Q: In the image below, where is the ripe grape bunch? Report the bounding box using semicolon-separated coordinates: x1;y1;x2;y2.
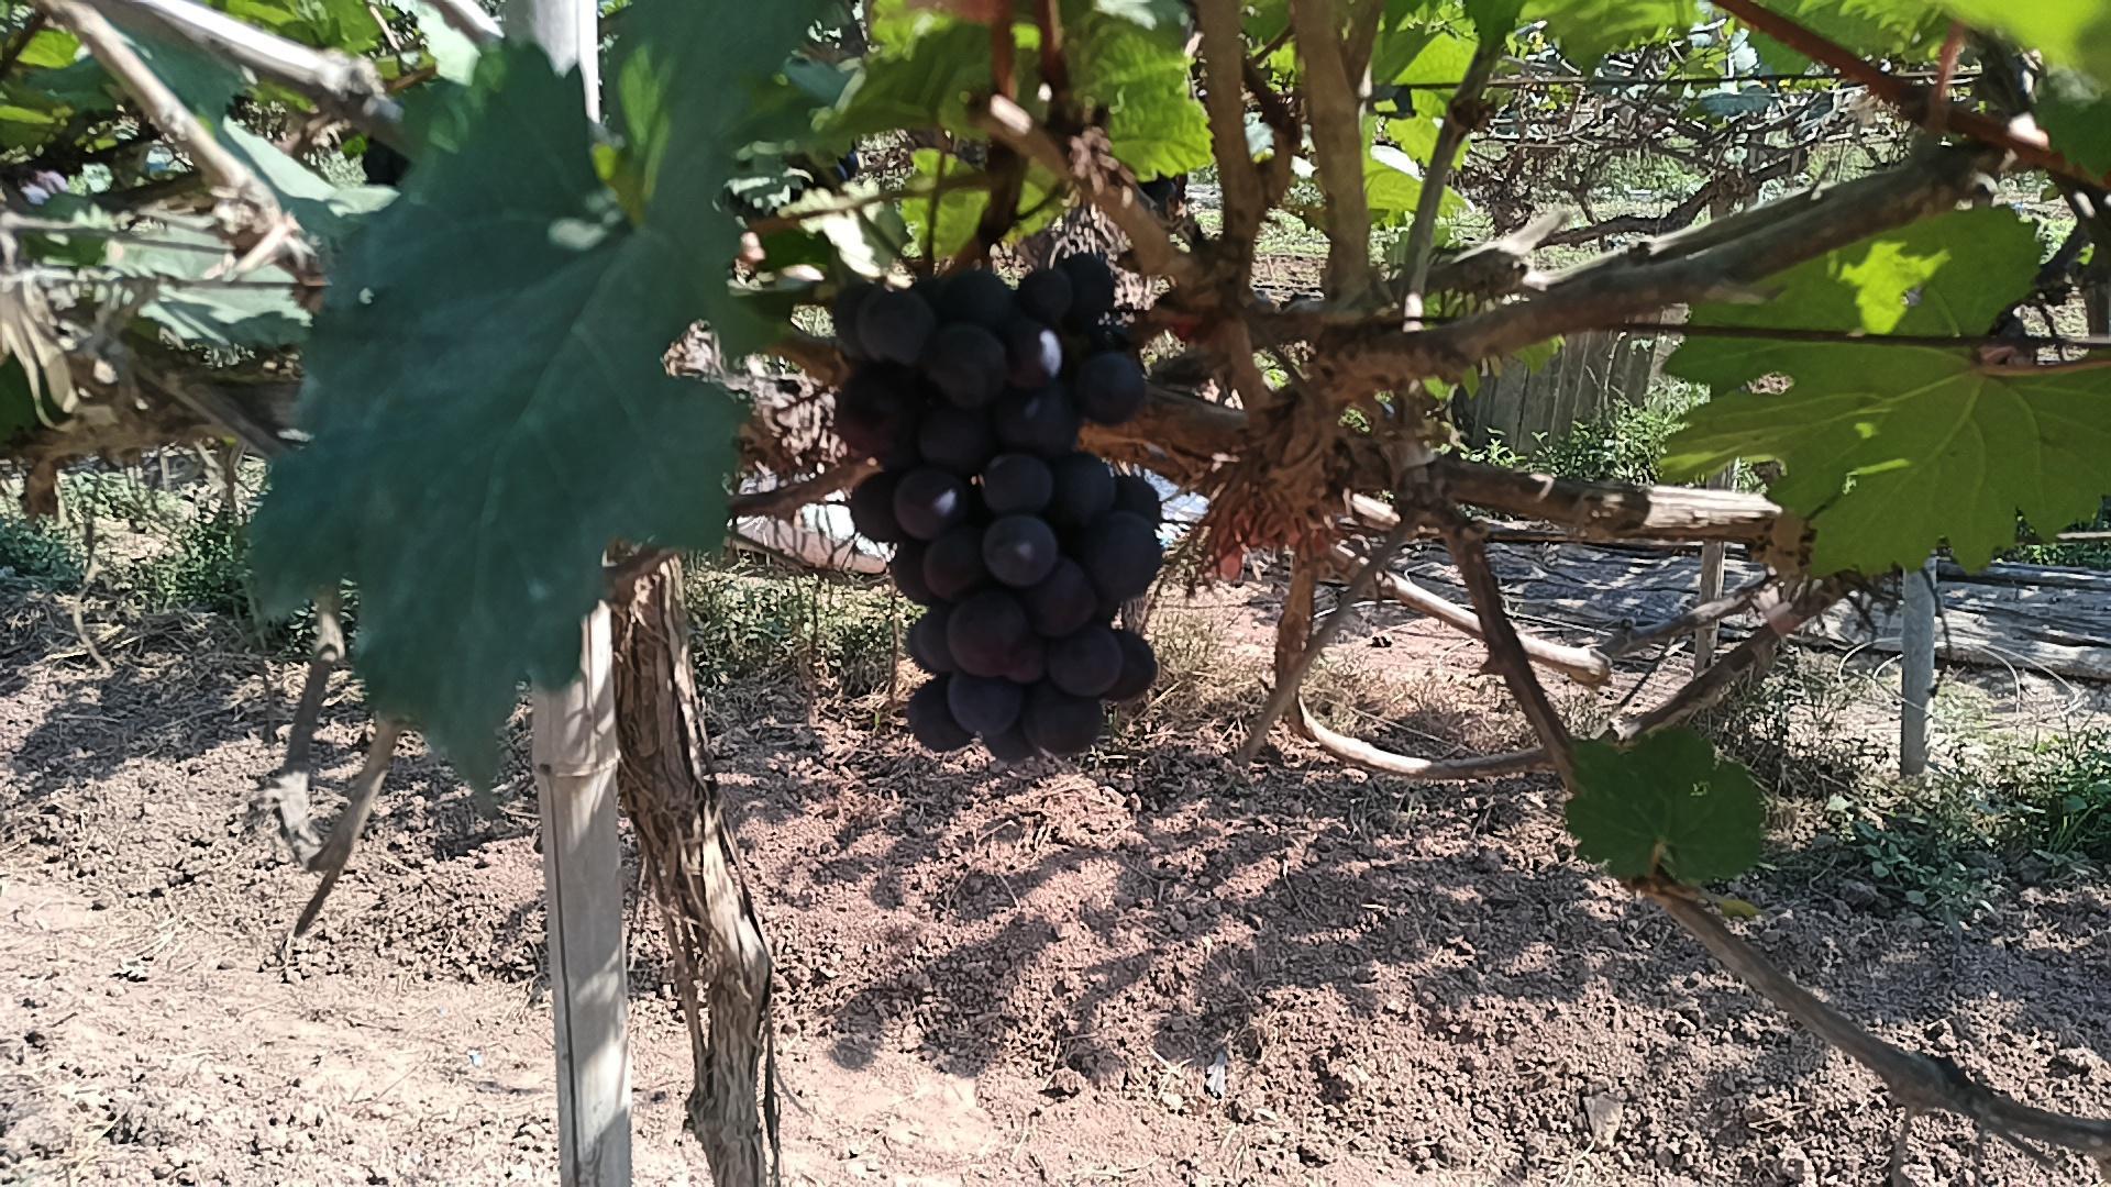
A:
835;254;1162;761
